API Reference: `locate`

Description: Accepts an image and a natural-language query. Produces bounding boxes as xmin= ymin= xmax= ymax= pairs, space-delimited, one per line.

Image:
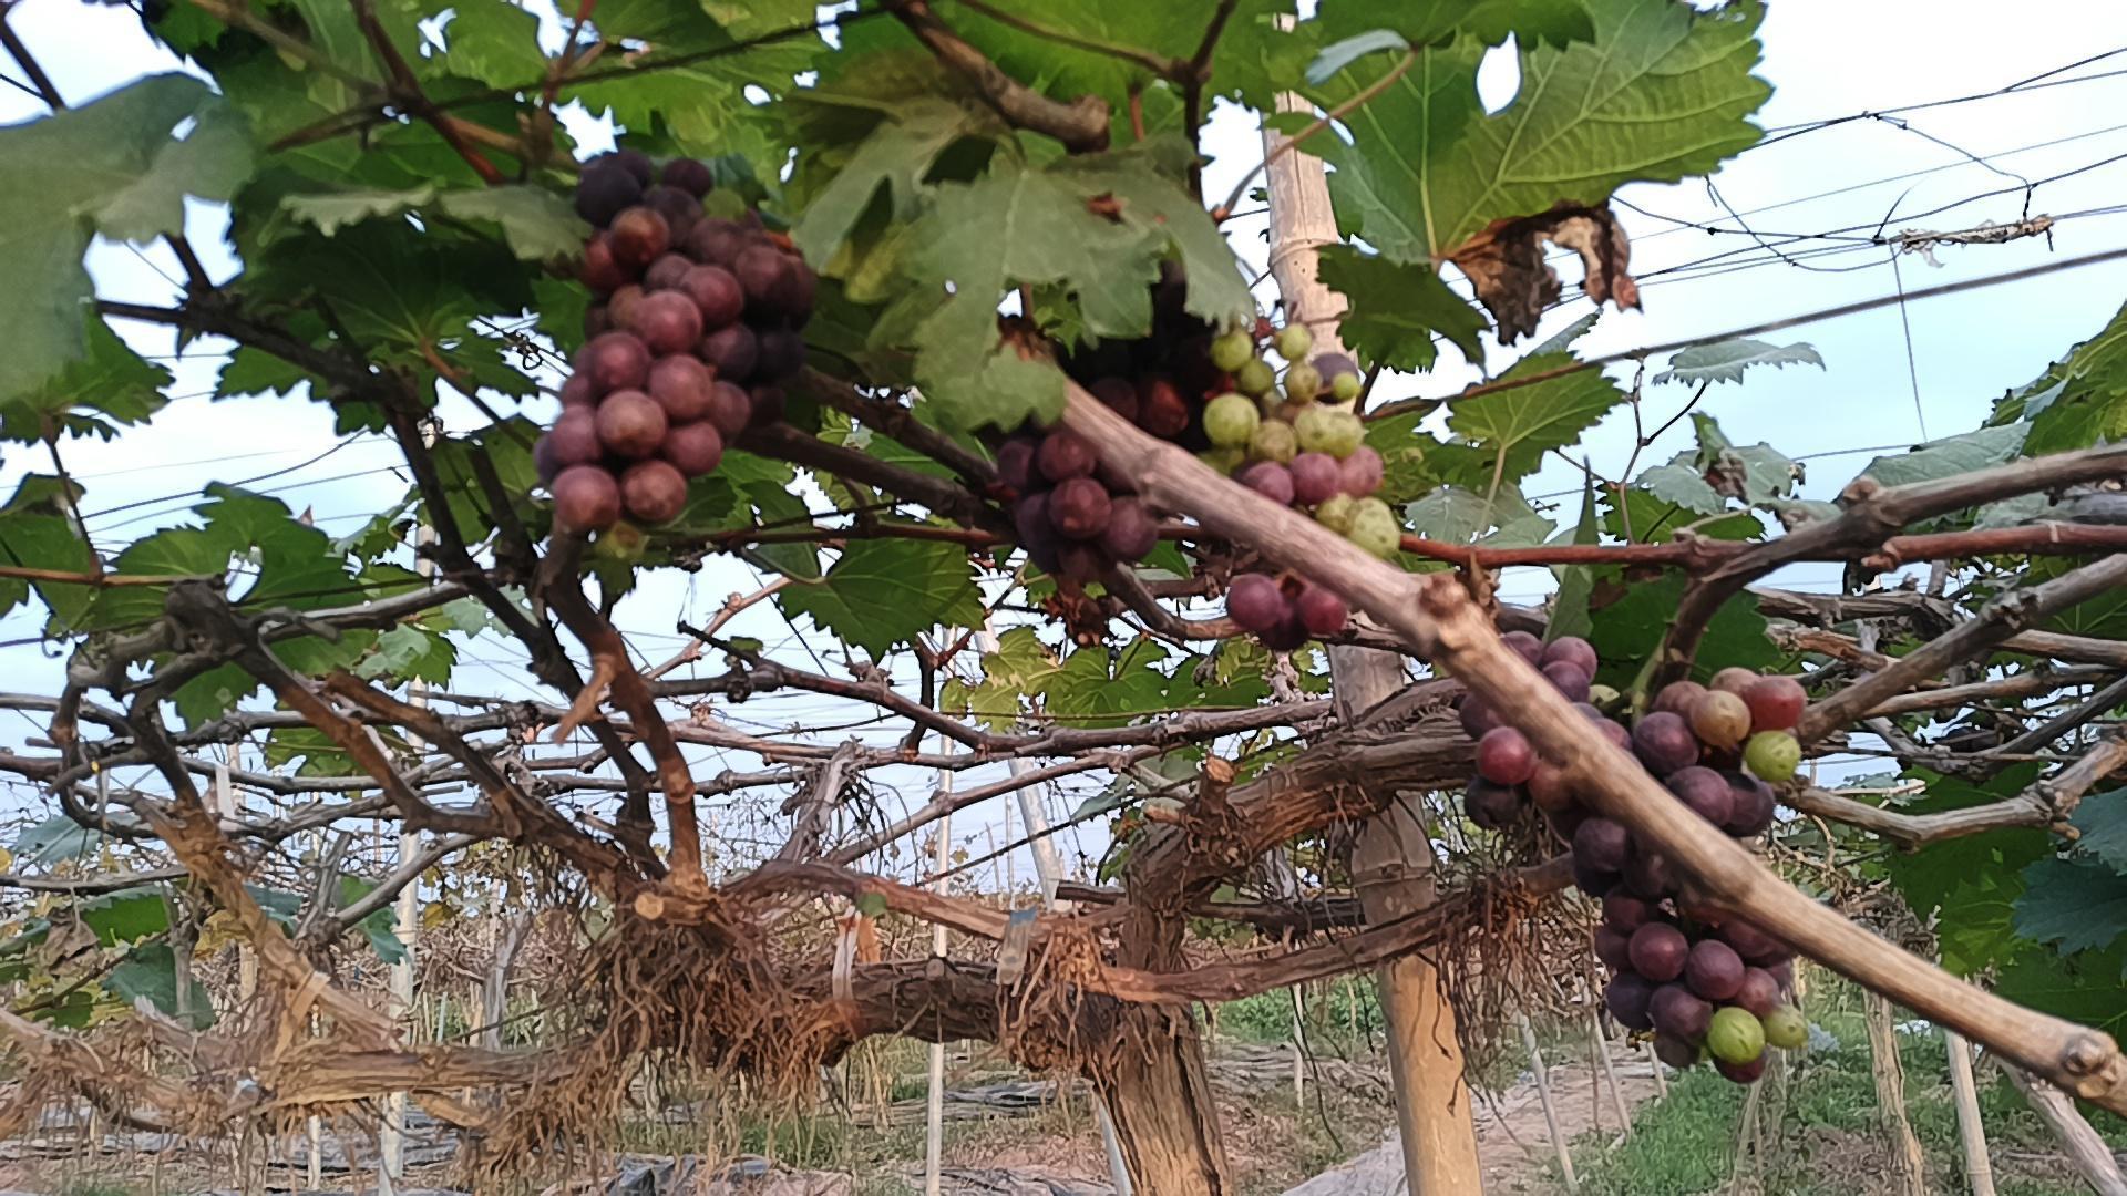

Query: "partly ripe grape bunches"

xmin=998 ymin=264 xmax=1417 ymax=649
xmin=1427 ymin=577 xmax=1805 ymax=1082
xmin=534 ymin=151 xmax=814 ymax=529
